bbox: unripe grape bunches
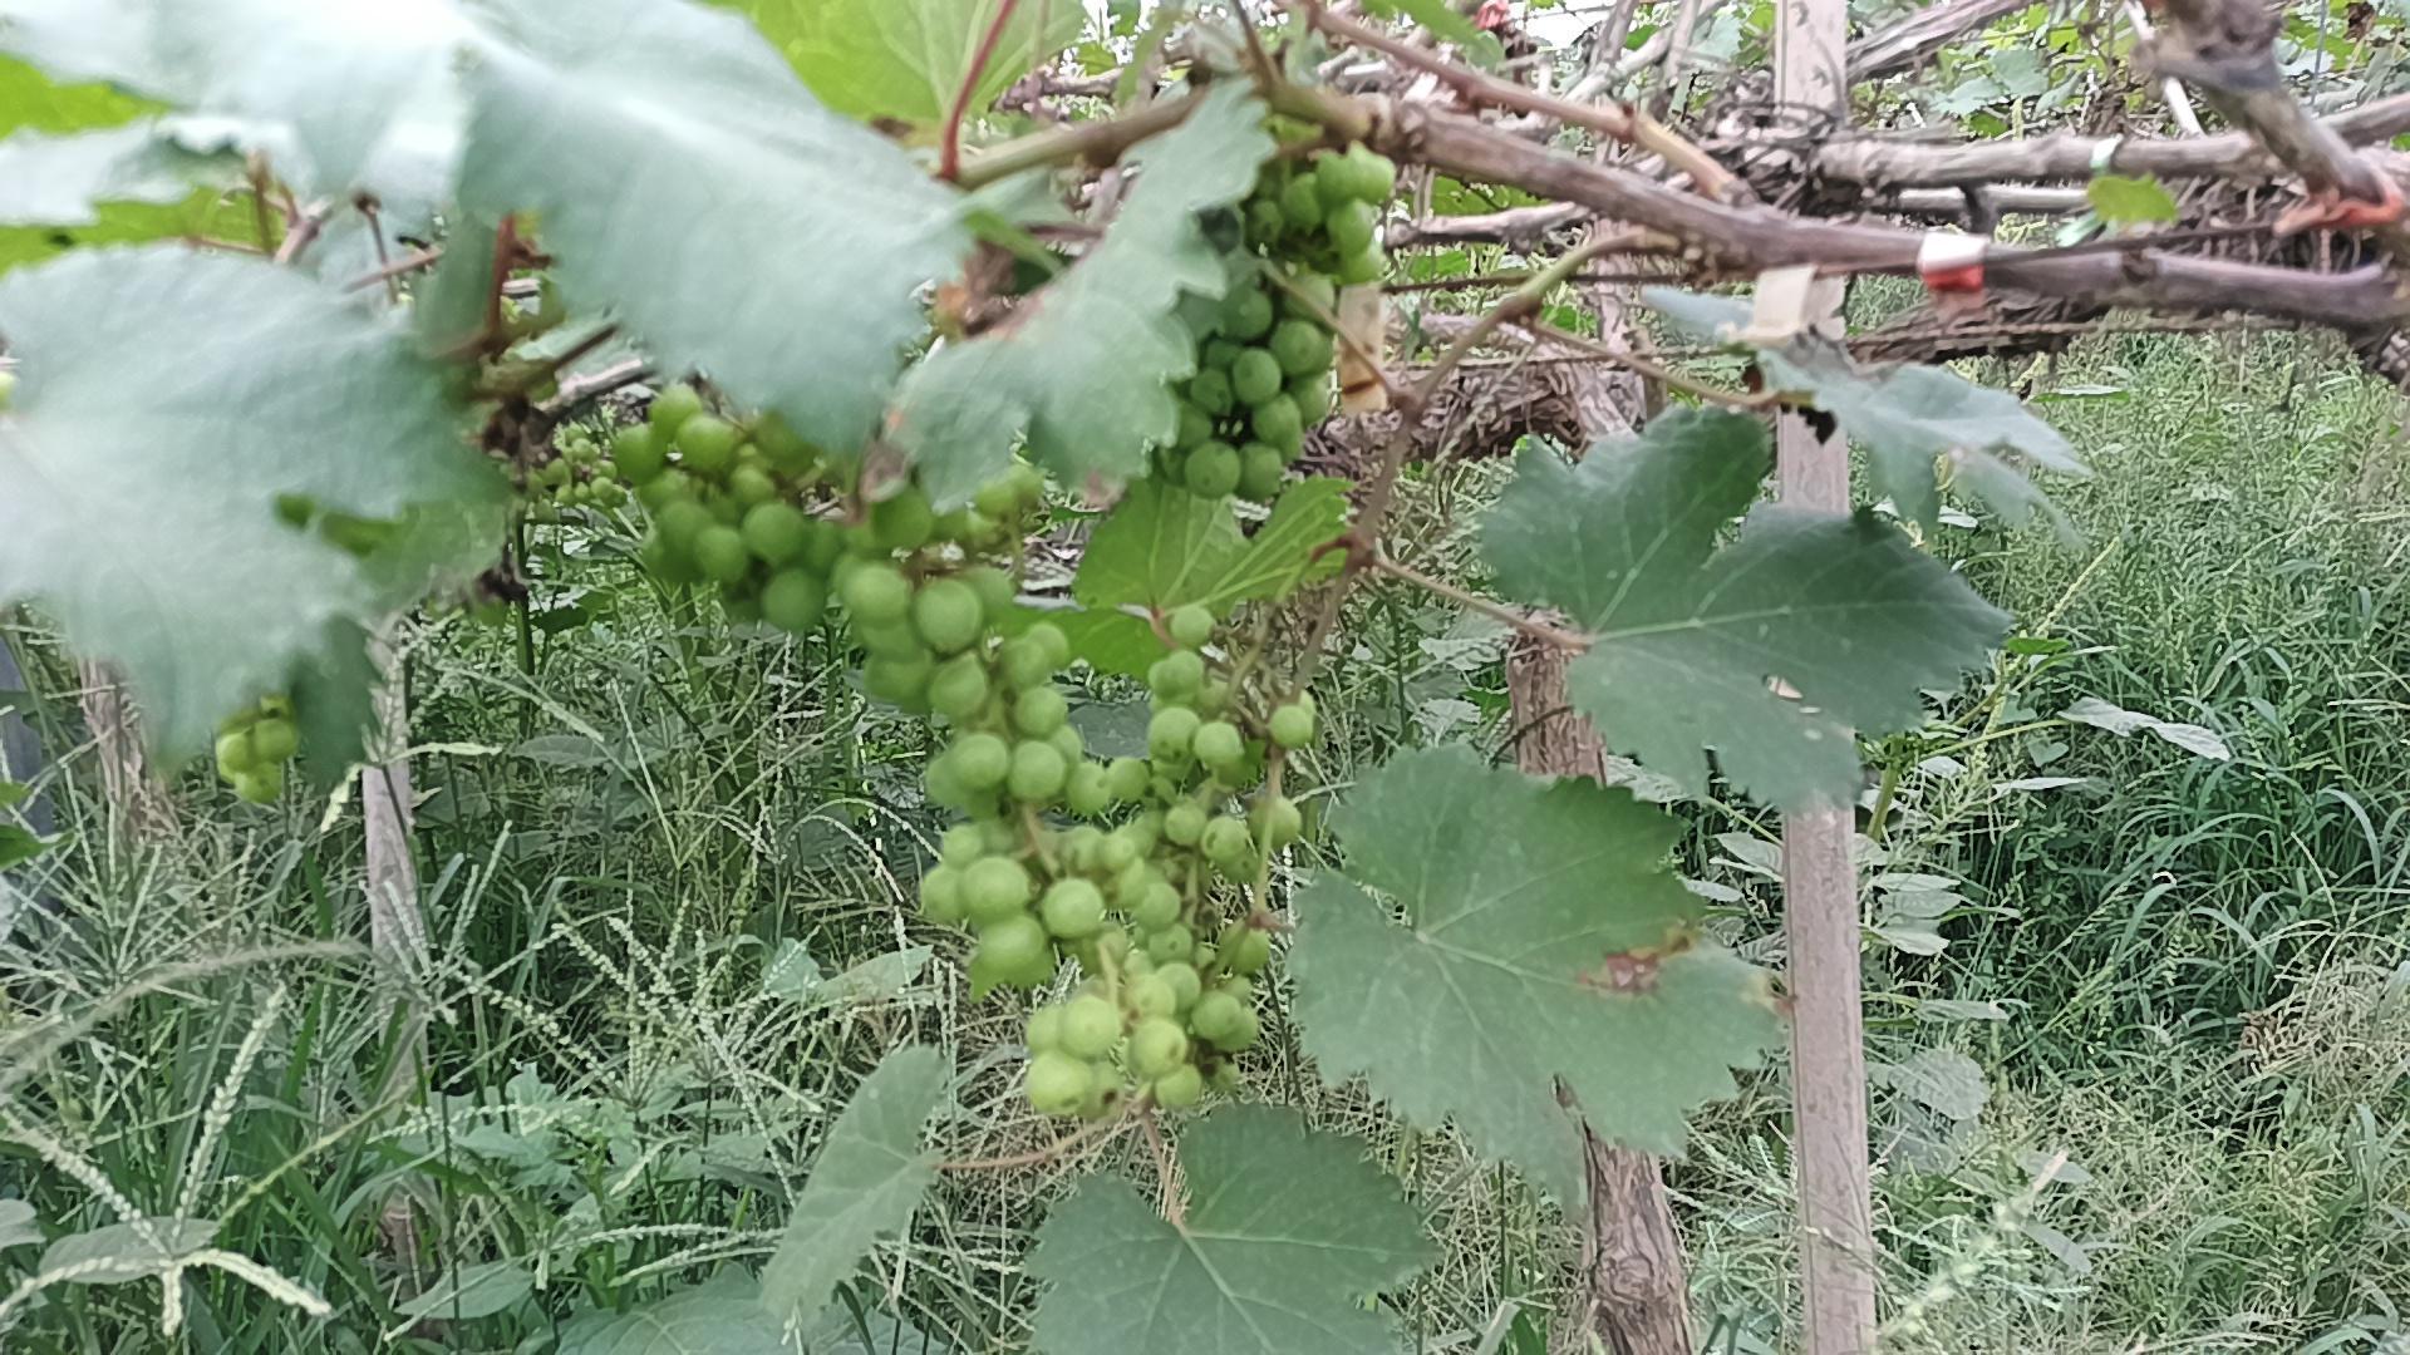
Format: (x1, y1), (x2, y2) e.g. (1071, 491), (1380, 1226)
(1160, 147), (1391, 502)
(498, 295), (628, 508)
(1105, 605), (1319, 1095)
(821, 459), (1248, 1117)
(216, 696), (299, 803)
(614, 385), (825, 630)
